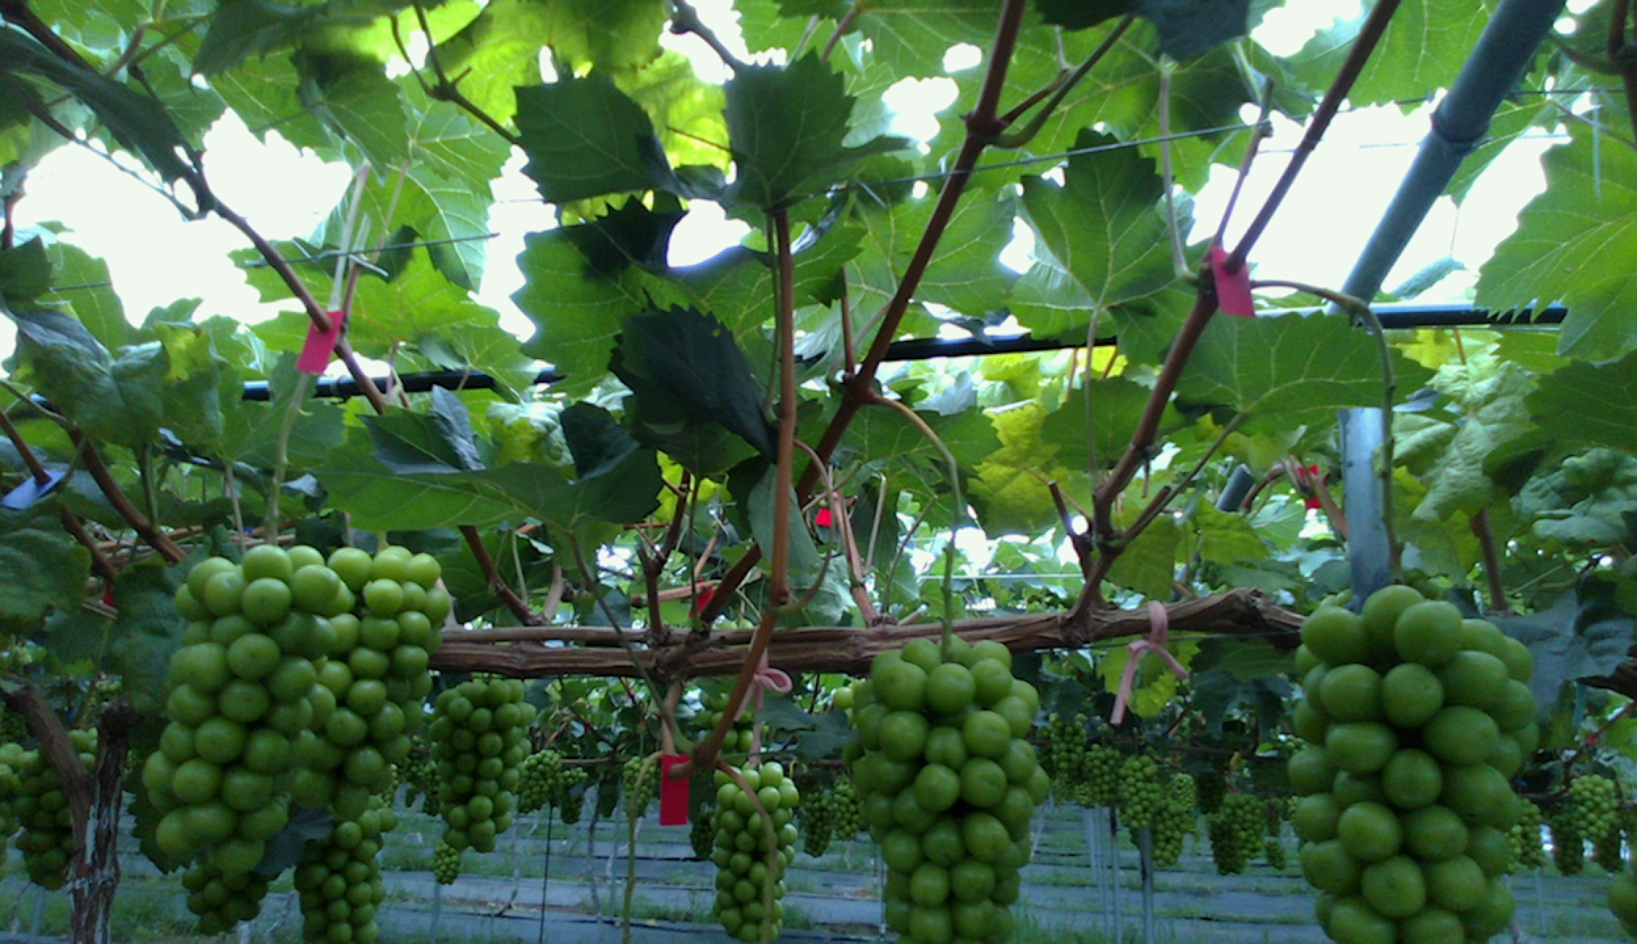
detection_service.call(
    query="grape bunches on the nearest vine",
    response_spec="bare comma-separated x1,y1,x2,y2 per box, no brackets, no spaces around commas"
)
1289,581,1539,943
143,543,341,876
853,636,1051,943
291,545,450,819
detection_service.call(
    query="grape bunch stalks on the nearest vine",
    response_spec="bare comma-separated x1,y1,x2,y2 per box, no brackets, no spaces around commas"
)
265,374,310,544
864,392,963,663
1253,278,1405,583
